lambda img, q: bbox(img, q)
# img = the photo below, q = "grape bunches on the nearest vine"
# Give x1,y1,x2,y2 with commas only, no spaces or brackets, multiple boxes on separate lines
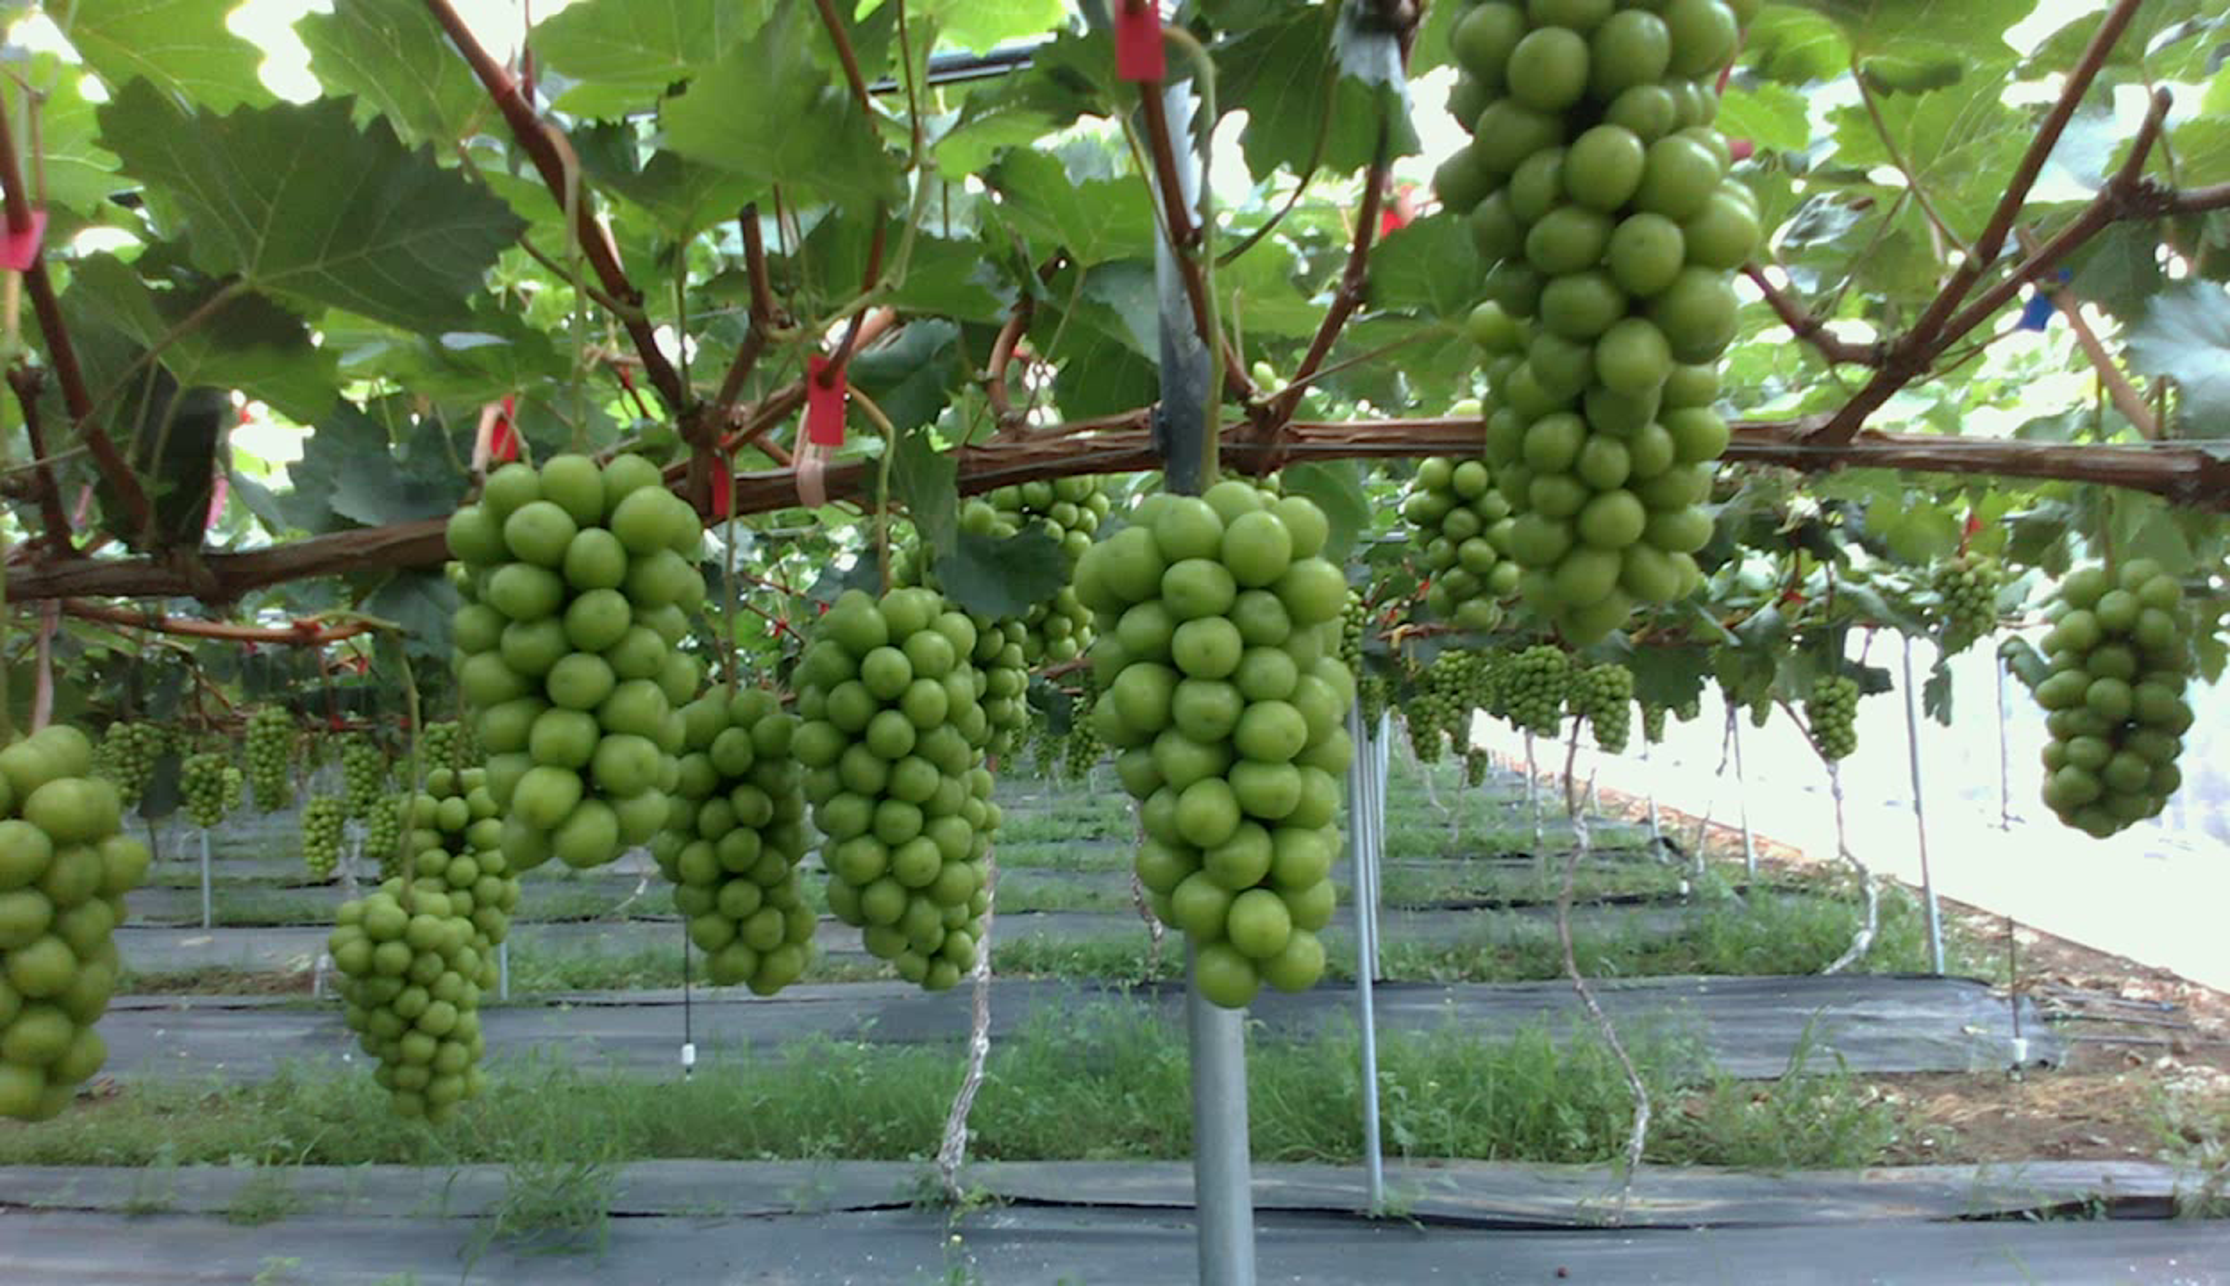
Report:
1074,479,1354,1011
649,684,815,995
792,586,999,993
329,877,499,1127
1431,2,1758,643
2,723,147,1125
443,452,706,872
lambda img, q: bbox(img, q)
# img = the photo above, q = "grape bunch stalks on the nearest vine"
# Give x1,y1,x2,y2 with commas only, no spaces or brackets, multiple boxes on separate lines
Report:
849,384,895,597
724,452,738,700
0,529,11,747
313,607,422,914
1160,25,1228,495
541,123,586,452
